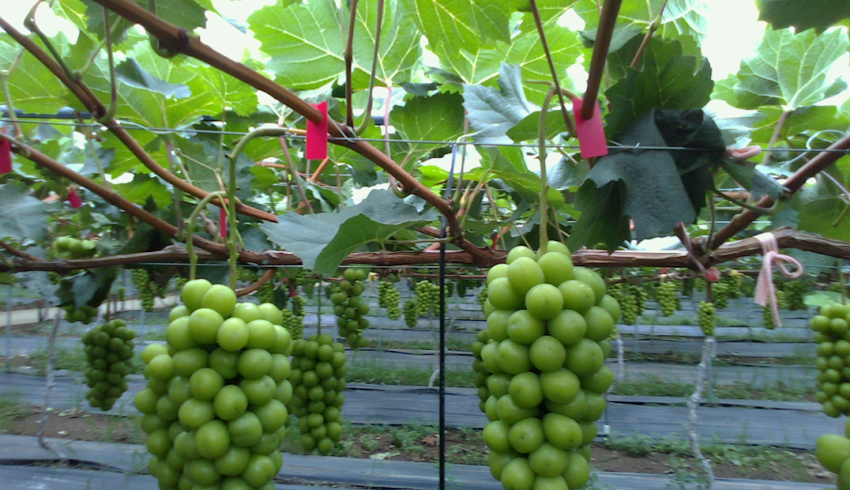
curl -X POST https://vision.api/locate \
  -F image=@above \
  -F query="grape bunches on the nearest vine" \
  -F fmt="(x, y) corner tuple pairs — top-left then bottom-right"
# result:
(134, 279), (212, 489)
(163, 285), (294, 489)
(482, 240), (621, 489)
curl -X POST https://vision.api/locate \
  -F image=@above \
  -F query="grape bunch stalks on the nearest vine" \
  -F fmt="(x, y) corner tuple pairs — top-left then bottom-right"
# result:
(229, 128), (307, 290)
(538, 86), (579, 257)
(186, 191), (228, 281)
